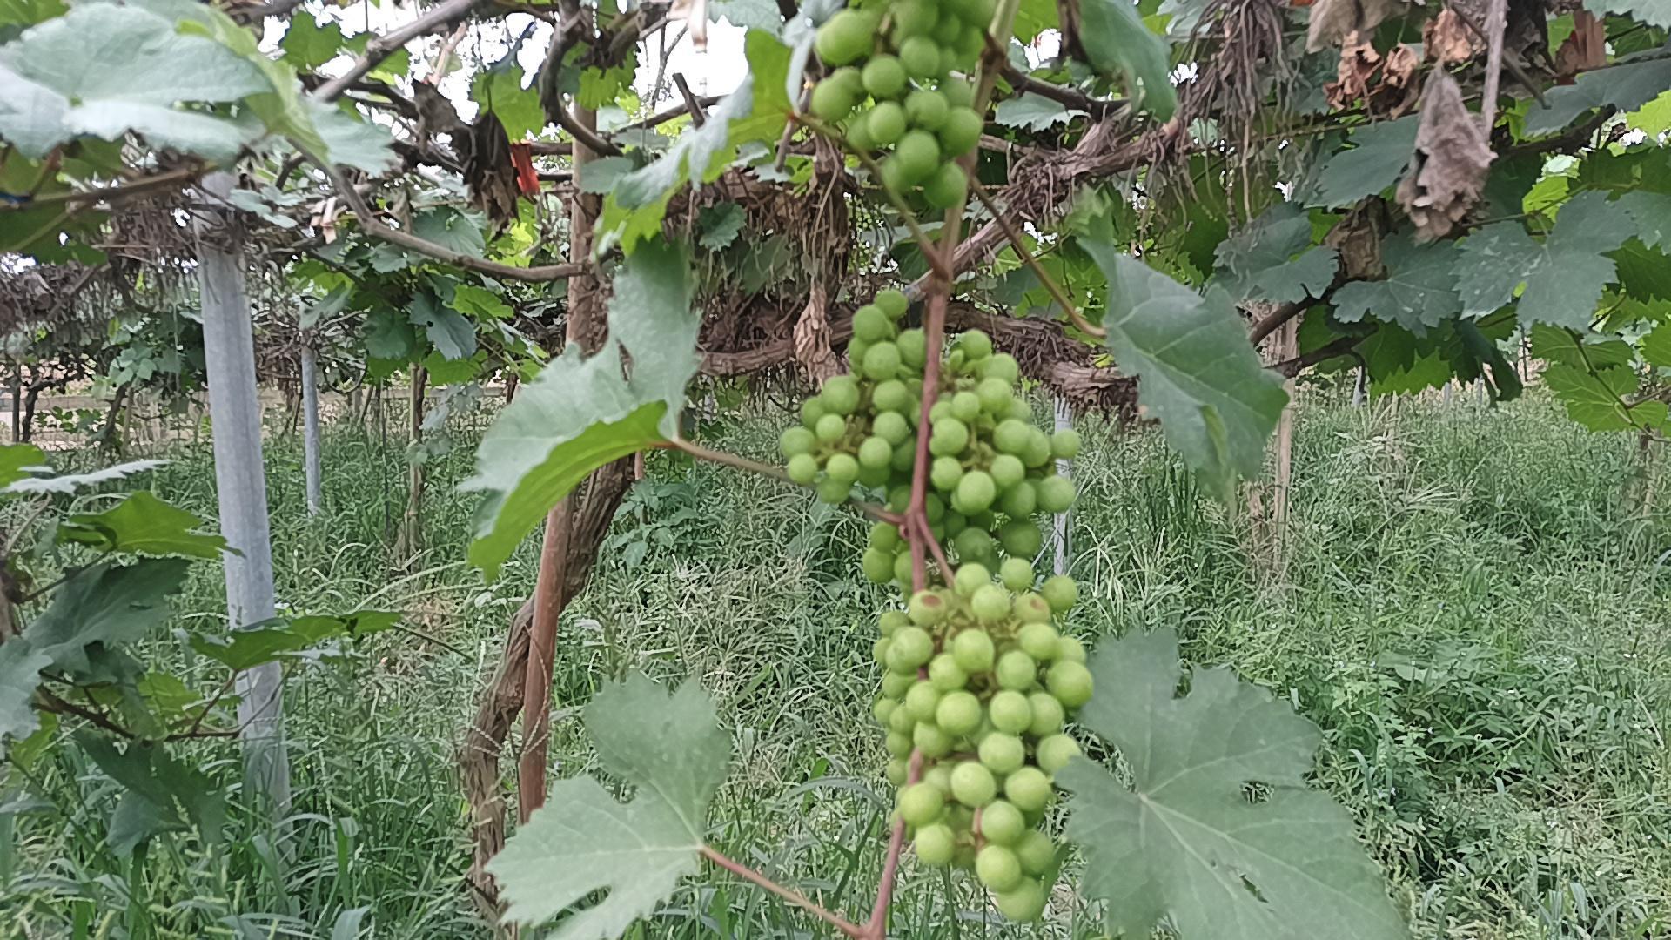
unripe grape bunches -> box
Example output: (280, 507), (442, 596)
(812, 0), (999, 211)
(921, 331), (1080, 578)
(862, 521), (914, 587)
(872, 558), (1094, 922)
(778, 289), (929, 516)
